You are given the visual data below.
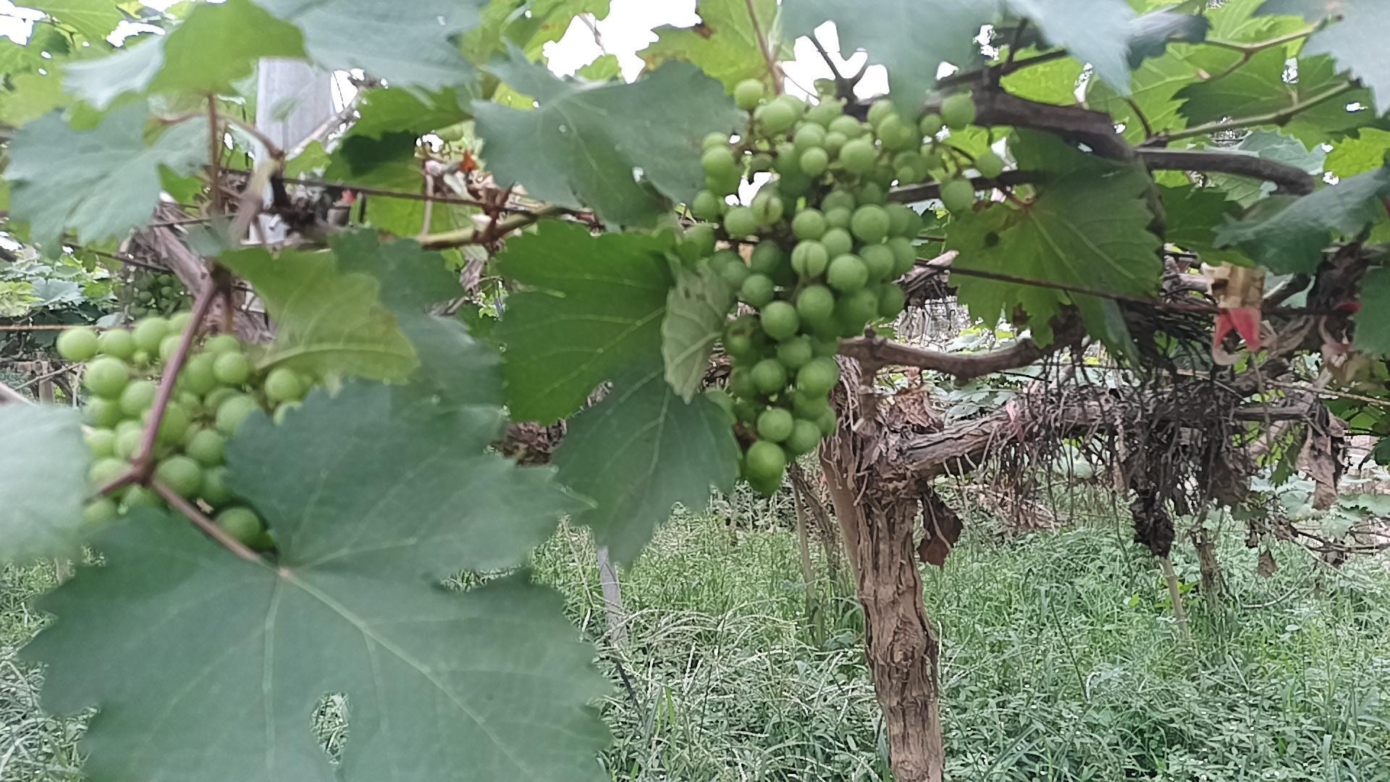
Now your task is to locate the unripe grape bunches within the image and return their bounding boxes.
[116,266,187,321]
[57,312,313,552]
[686,77,1011,497]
